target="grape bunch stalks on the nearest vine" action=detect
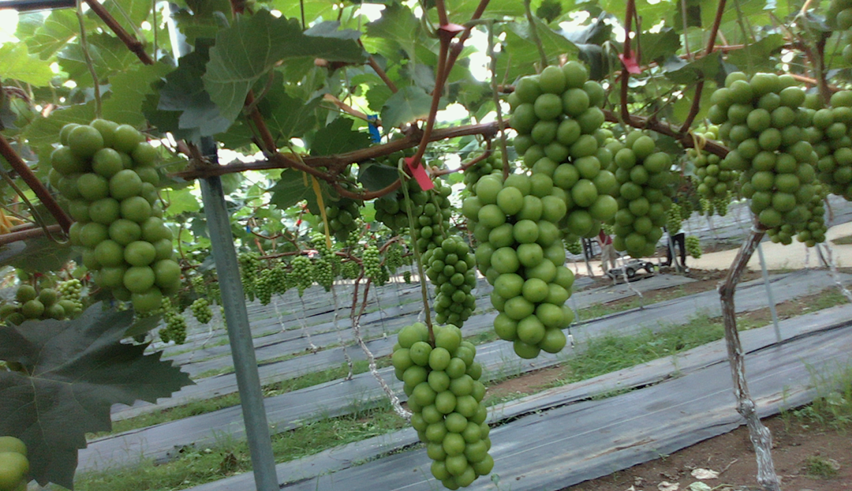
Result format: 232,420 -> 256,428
733,1 -> 754,75
76,1 -> 101,117
468,18 -> 509,181
524,1 -> 548,68
789,1 -> 825,108
398,160 -> 436,347
605,44 -> 629,134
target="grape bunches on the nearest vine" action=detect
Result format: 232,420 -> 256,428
462,170 -> 575,359
707,70 -> 819,228
393,323 -> 495,490
802,90 -> 851,201
508,62 -> 618,239
610,130 -> 671,257
47,121 -> 182,313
